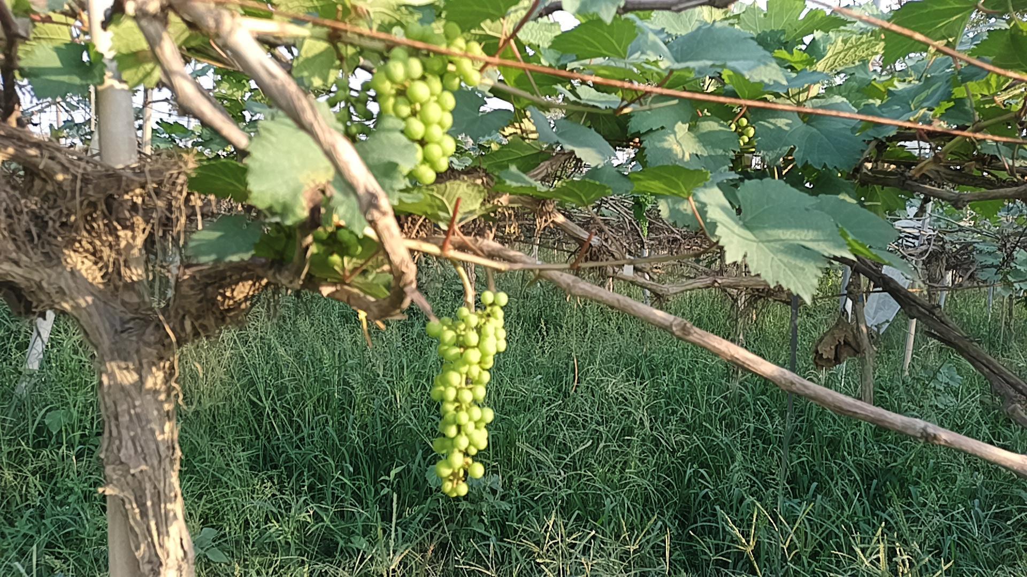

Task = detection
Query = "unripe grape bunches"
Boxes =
[730,117,755,147]
[371,21,482,184]
[427,291,508,497]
